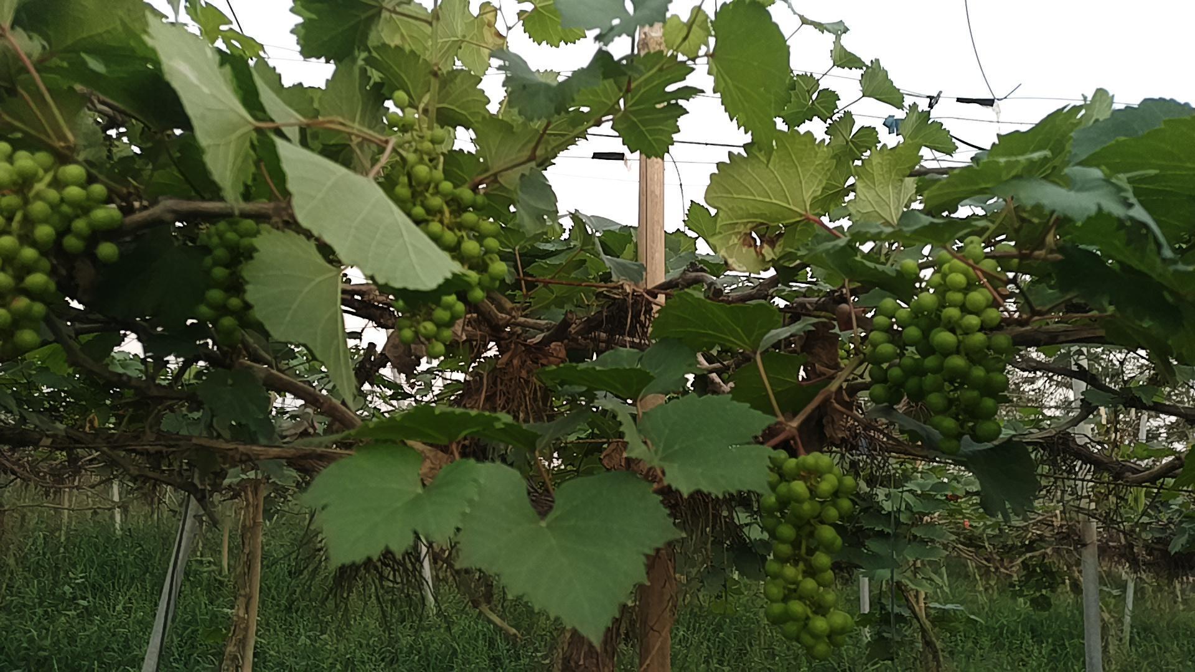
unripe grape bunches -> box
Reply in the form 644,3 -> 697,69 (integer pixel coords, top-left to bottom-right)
384,90 -> 505,357
866,237 -> 1011,450
0,141 -> 122,360
759,450 -> 856,660
197,221 -> 258,347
